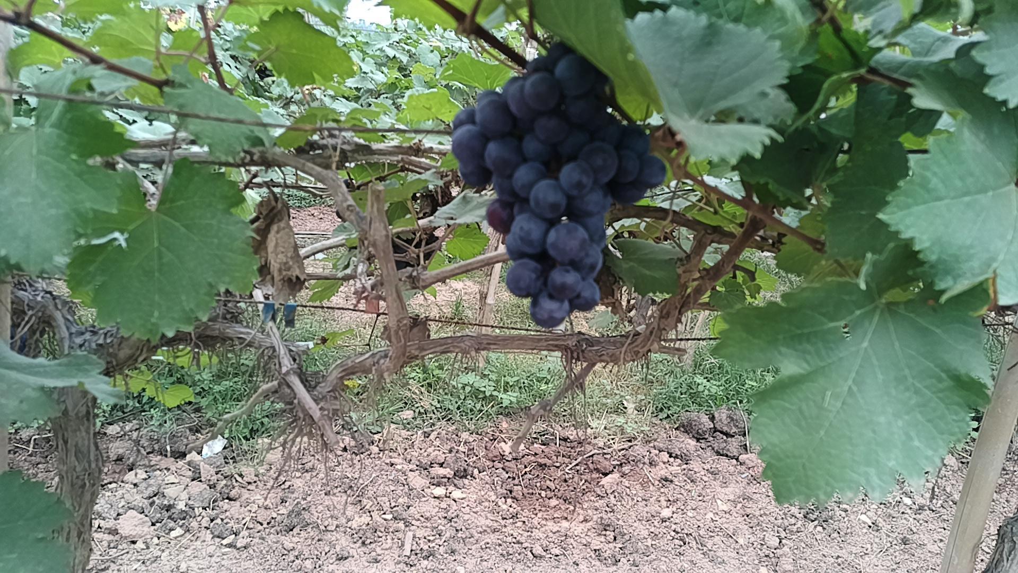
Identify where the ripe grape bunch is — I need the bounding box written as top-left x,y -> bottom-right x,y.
453,42 -> 666,328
